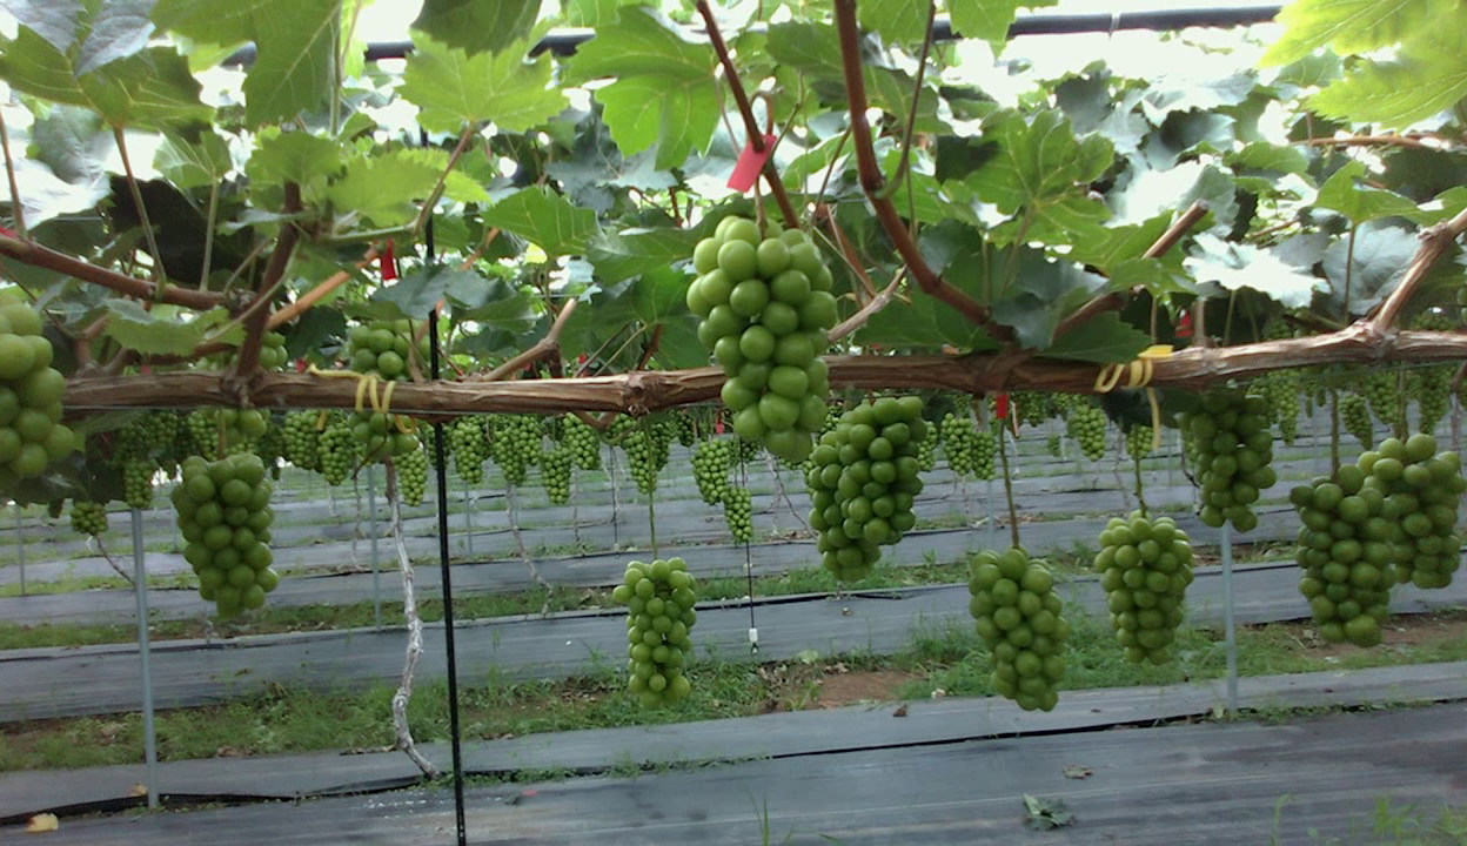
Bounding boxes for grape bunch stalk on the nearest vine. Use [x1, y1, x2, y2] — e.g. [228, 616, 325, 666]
[756, 180, 769, 240]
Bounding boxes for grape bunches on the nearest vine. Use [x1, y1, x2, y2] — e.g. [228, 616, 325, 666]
[0, 294, 74, 492]
[686, 215, 837, 464]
